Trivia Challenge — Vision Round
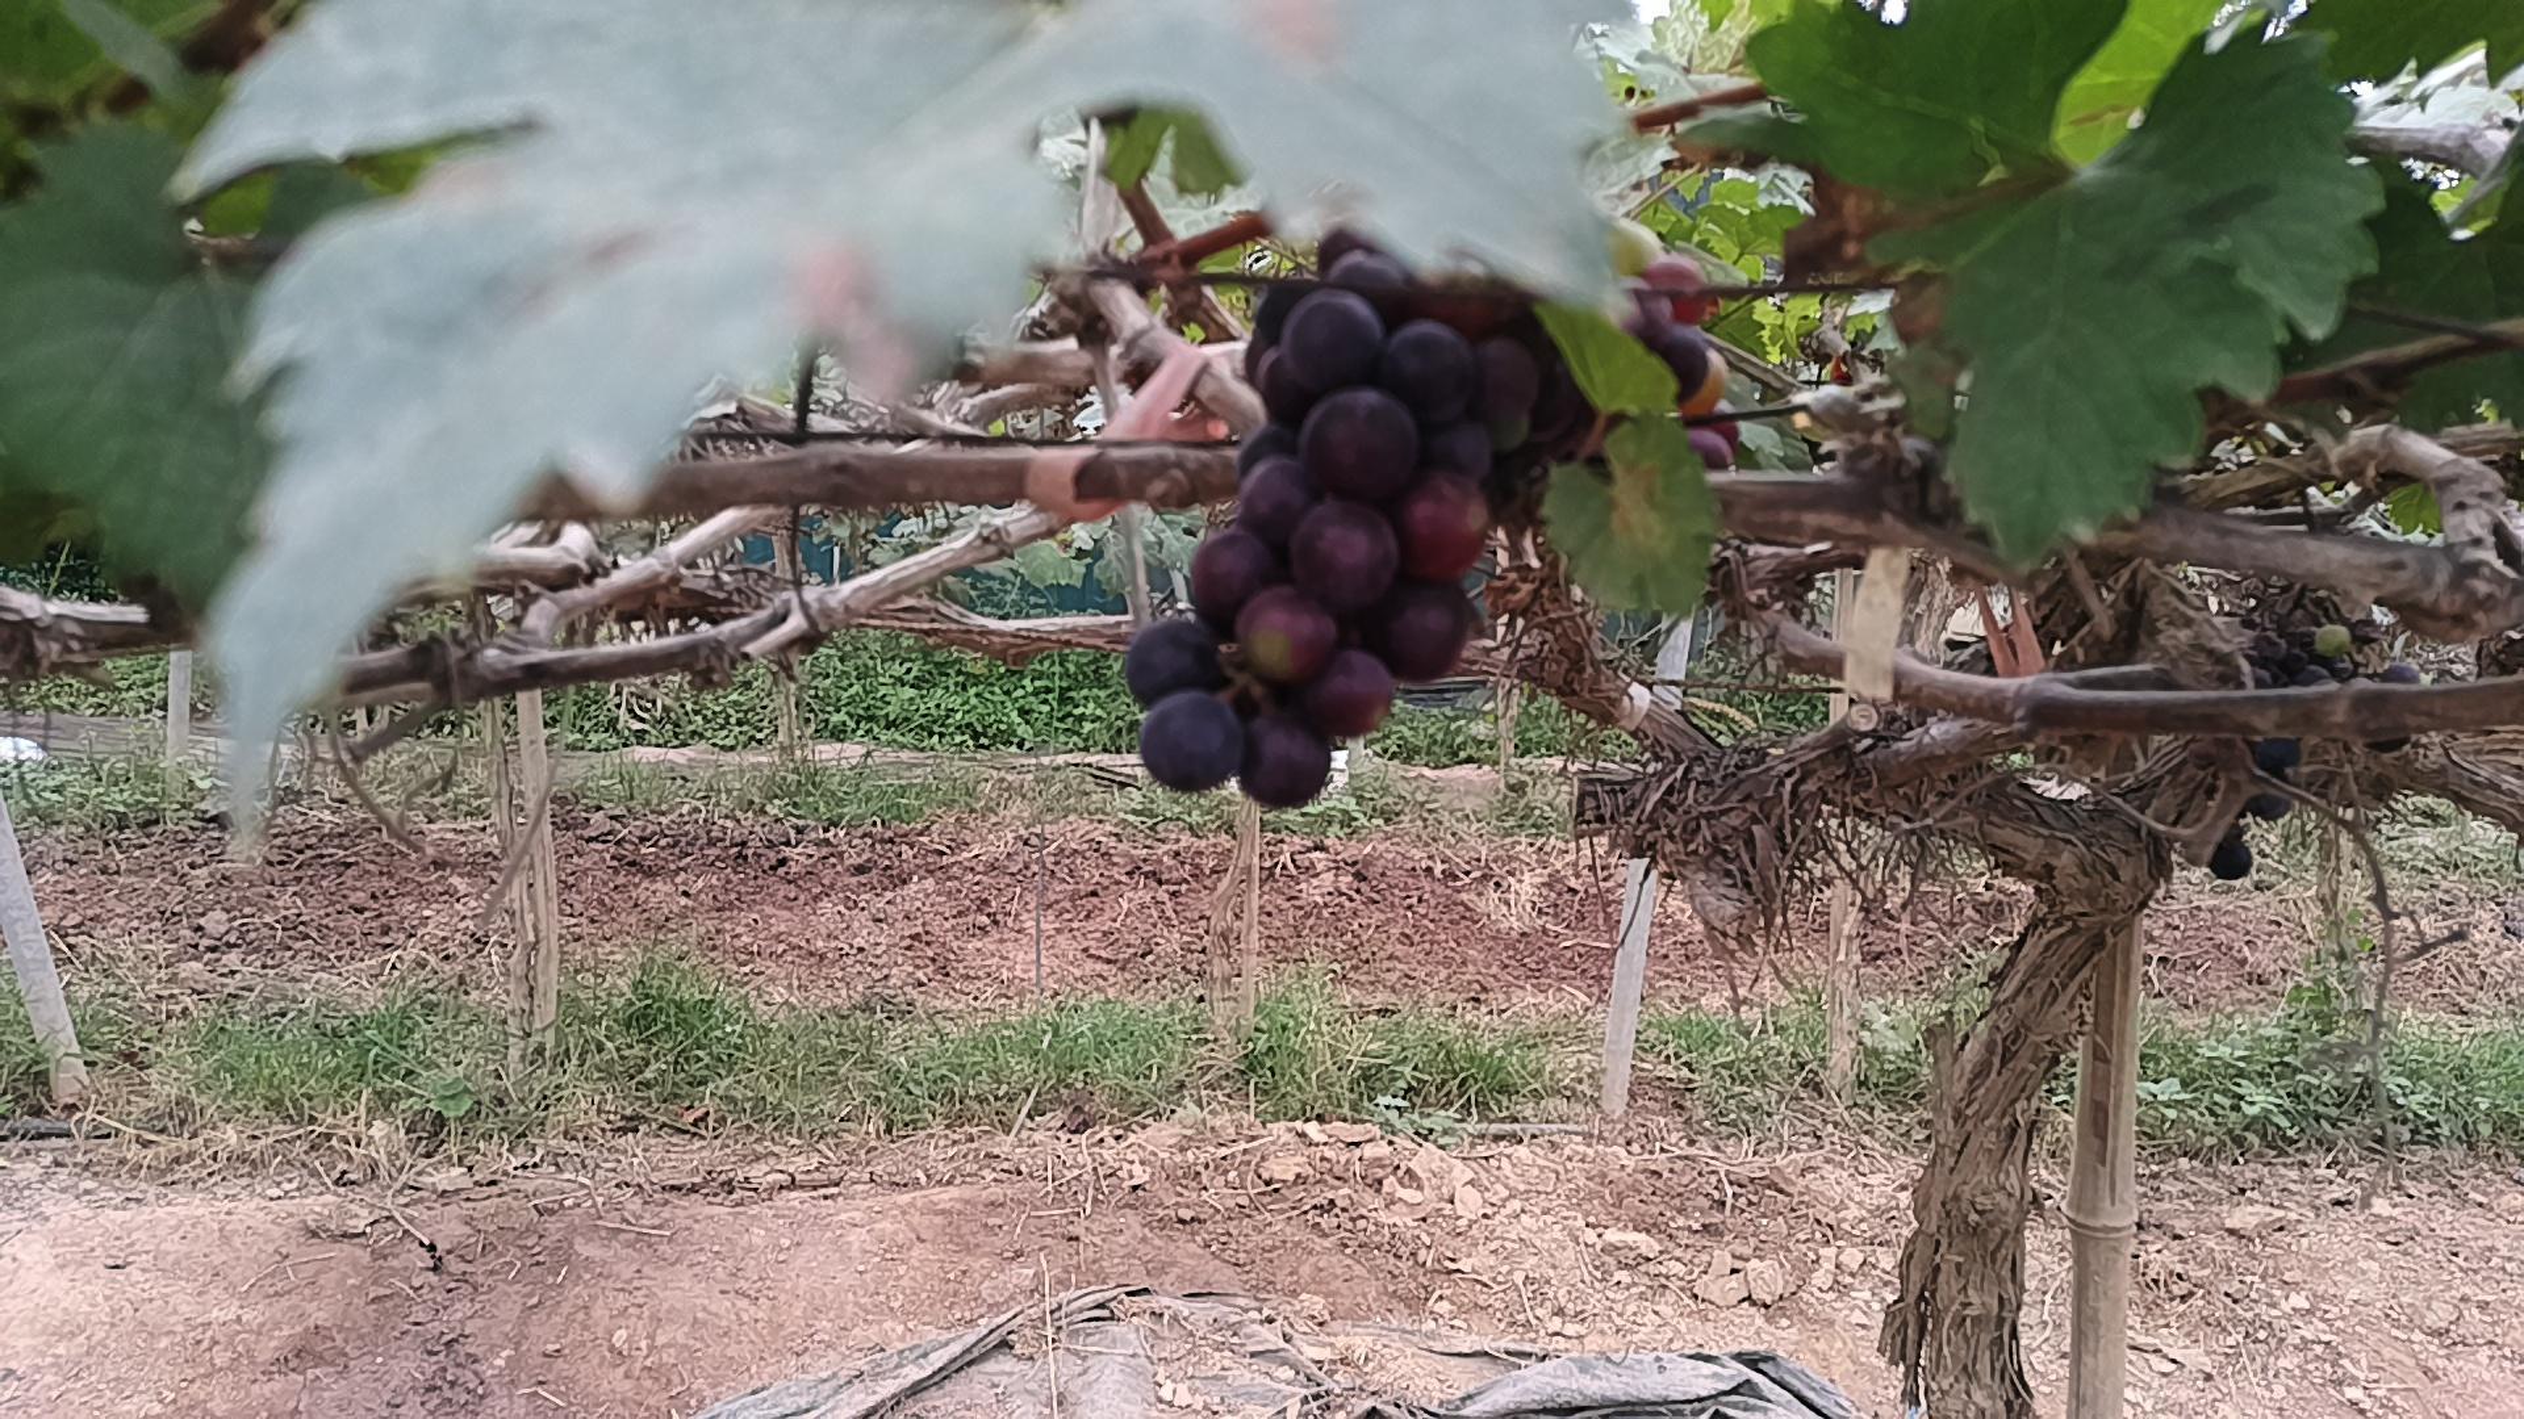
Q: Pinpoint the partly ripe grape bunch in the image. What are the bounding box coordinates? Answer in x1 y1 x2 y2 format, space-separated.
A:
2208 620 2446 879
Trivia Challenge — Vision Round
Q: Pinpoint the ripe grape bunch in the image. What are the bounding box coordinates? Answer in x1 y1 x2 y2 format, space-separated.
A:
1124 229 1734 808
